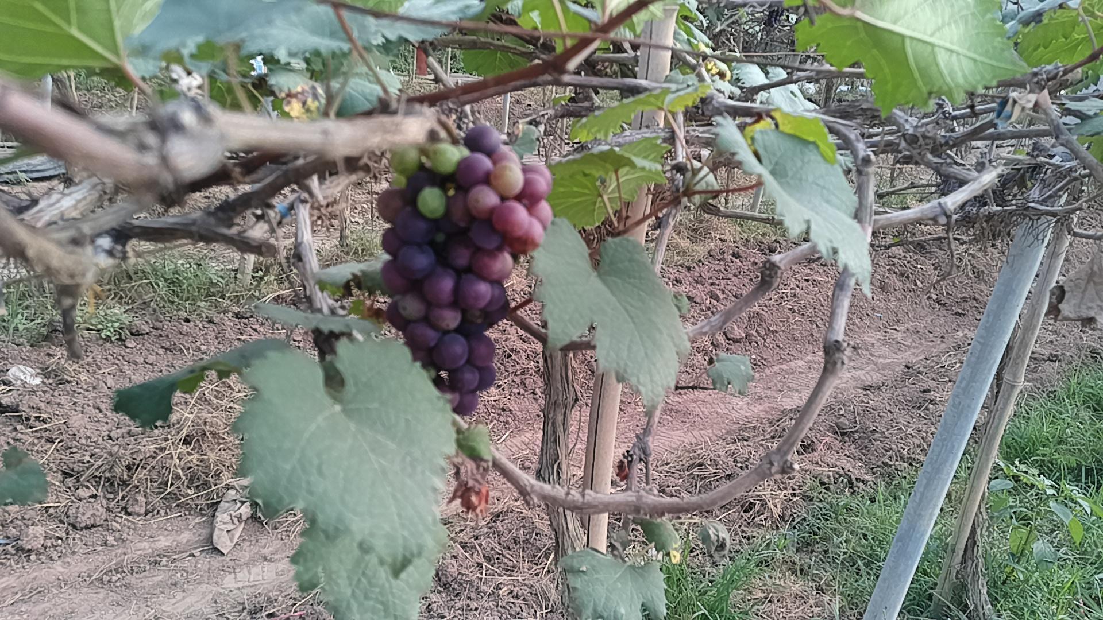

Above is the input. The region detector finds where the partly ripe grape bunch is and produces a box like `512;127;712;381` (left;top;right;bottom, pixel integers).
379;125;551;415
